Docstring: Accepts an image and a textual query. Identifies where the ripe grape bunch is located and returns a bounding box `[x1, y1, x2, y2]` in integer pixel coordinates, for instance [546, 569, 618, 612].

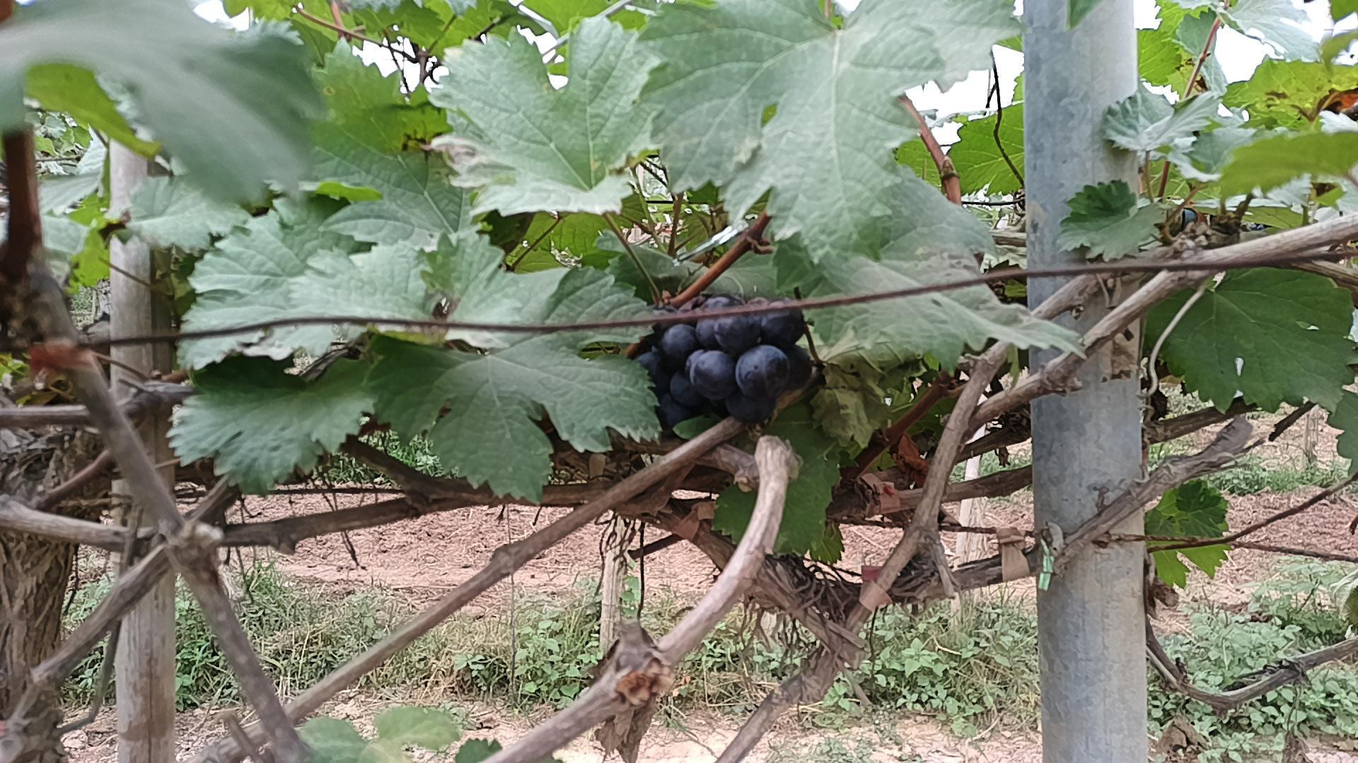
[636, 285, 816, 428]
